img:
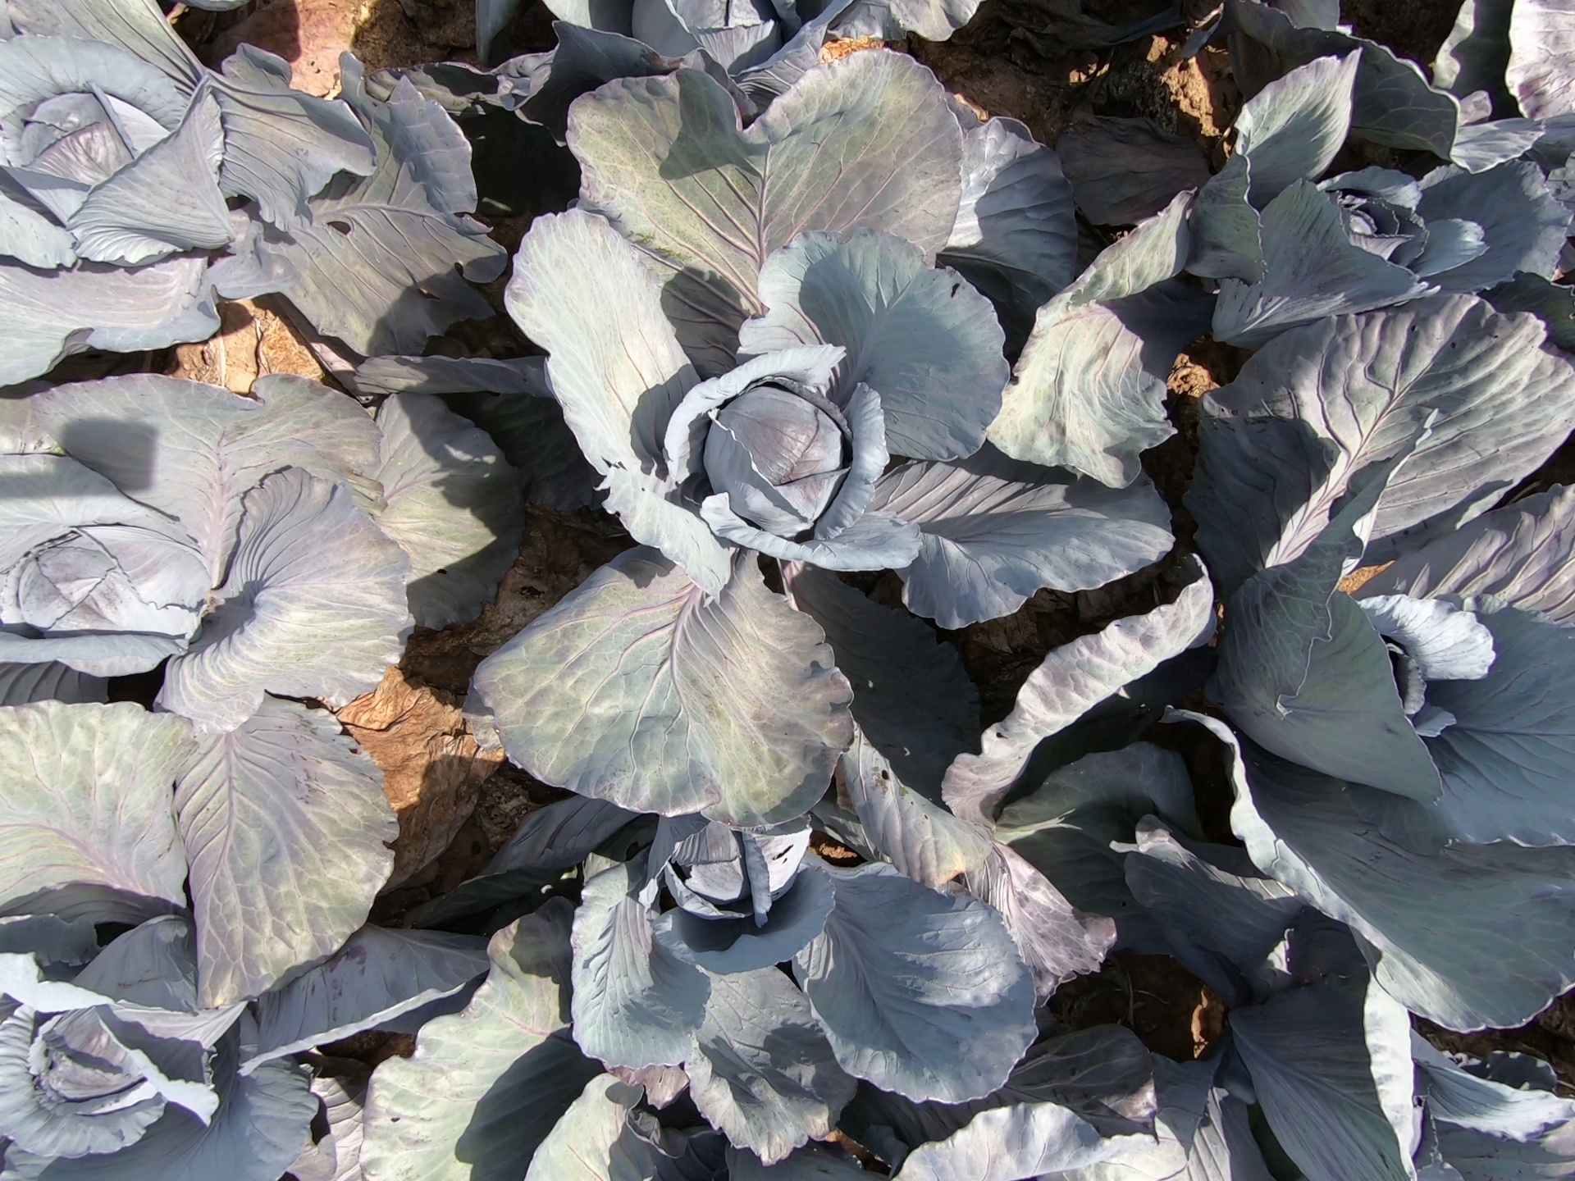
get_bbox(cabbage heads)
[1295,204,1385,303]
[641,2,779,94]
[18,90,189,222]
[708,382,850,531]
[664,791,798,912]
[32,987,177,1115]
[9,526,200,664]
